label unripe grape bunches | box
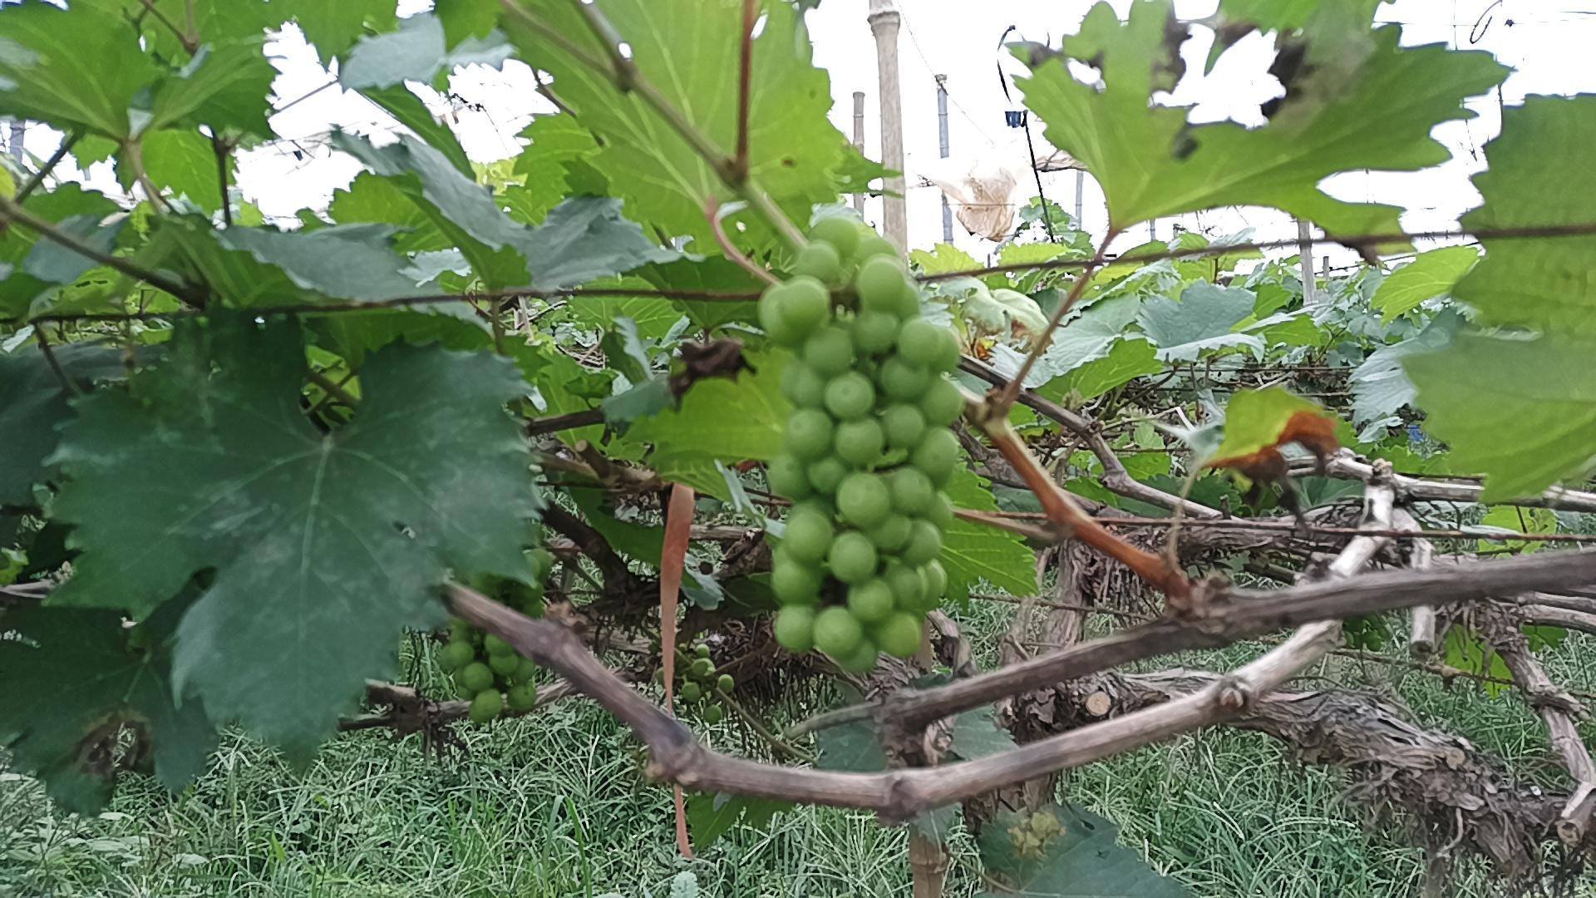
[758,219,960,671]
[676,644,735,723]
[440,550,552,723]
